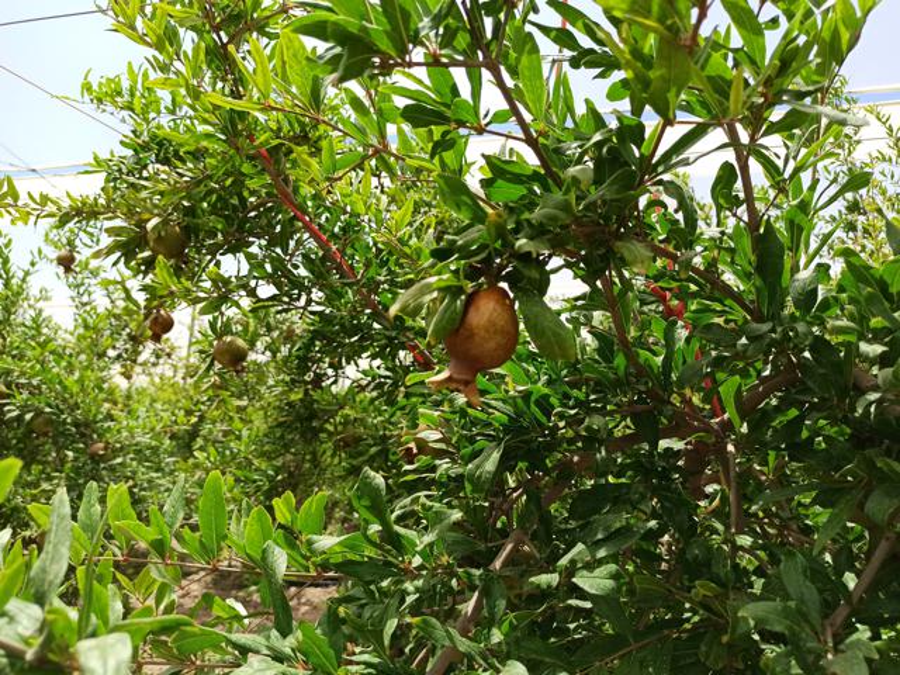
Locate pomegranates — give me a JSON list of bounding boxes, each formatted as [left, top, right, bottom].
[[212, 335, 249, 375], [55, 250, 76, 274], [148, 309, 174, 345], [149, 226, 184, 256], [423, 285, 519, 409]]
